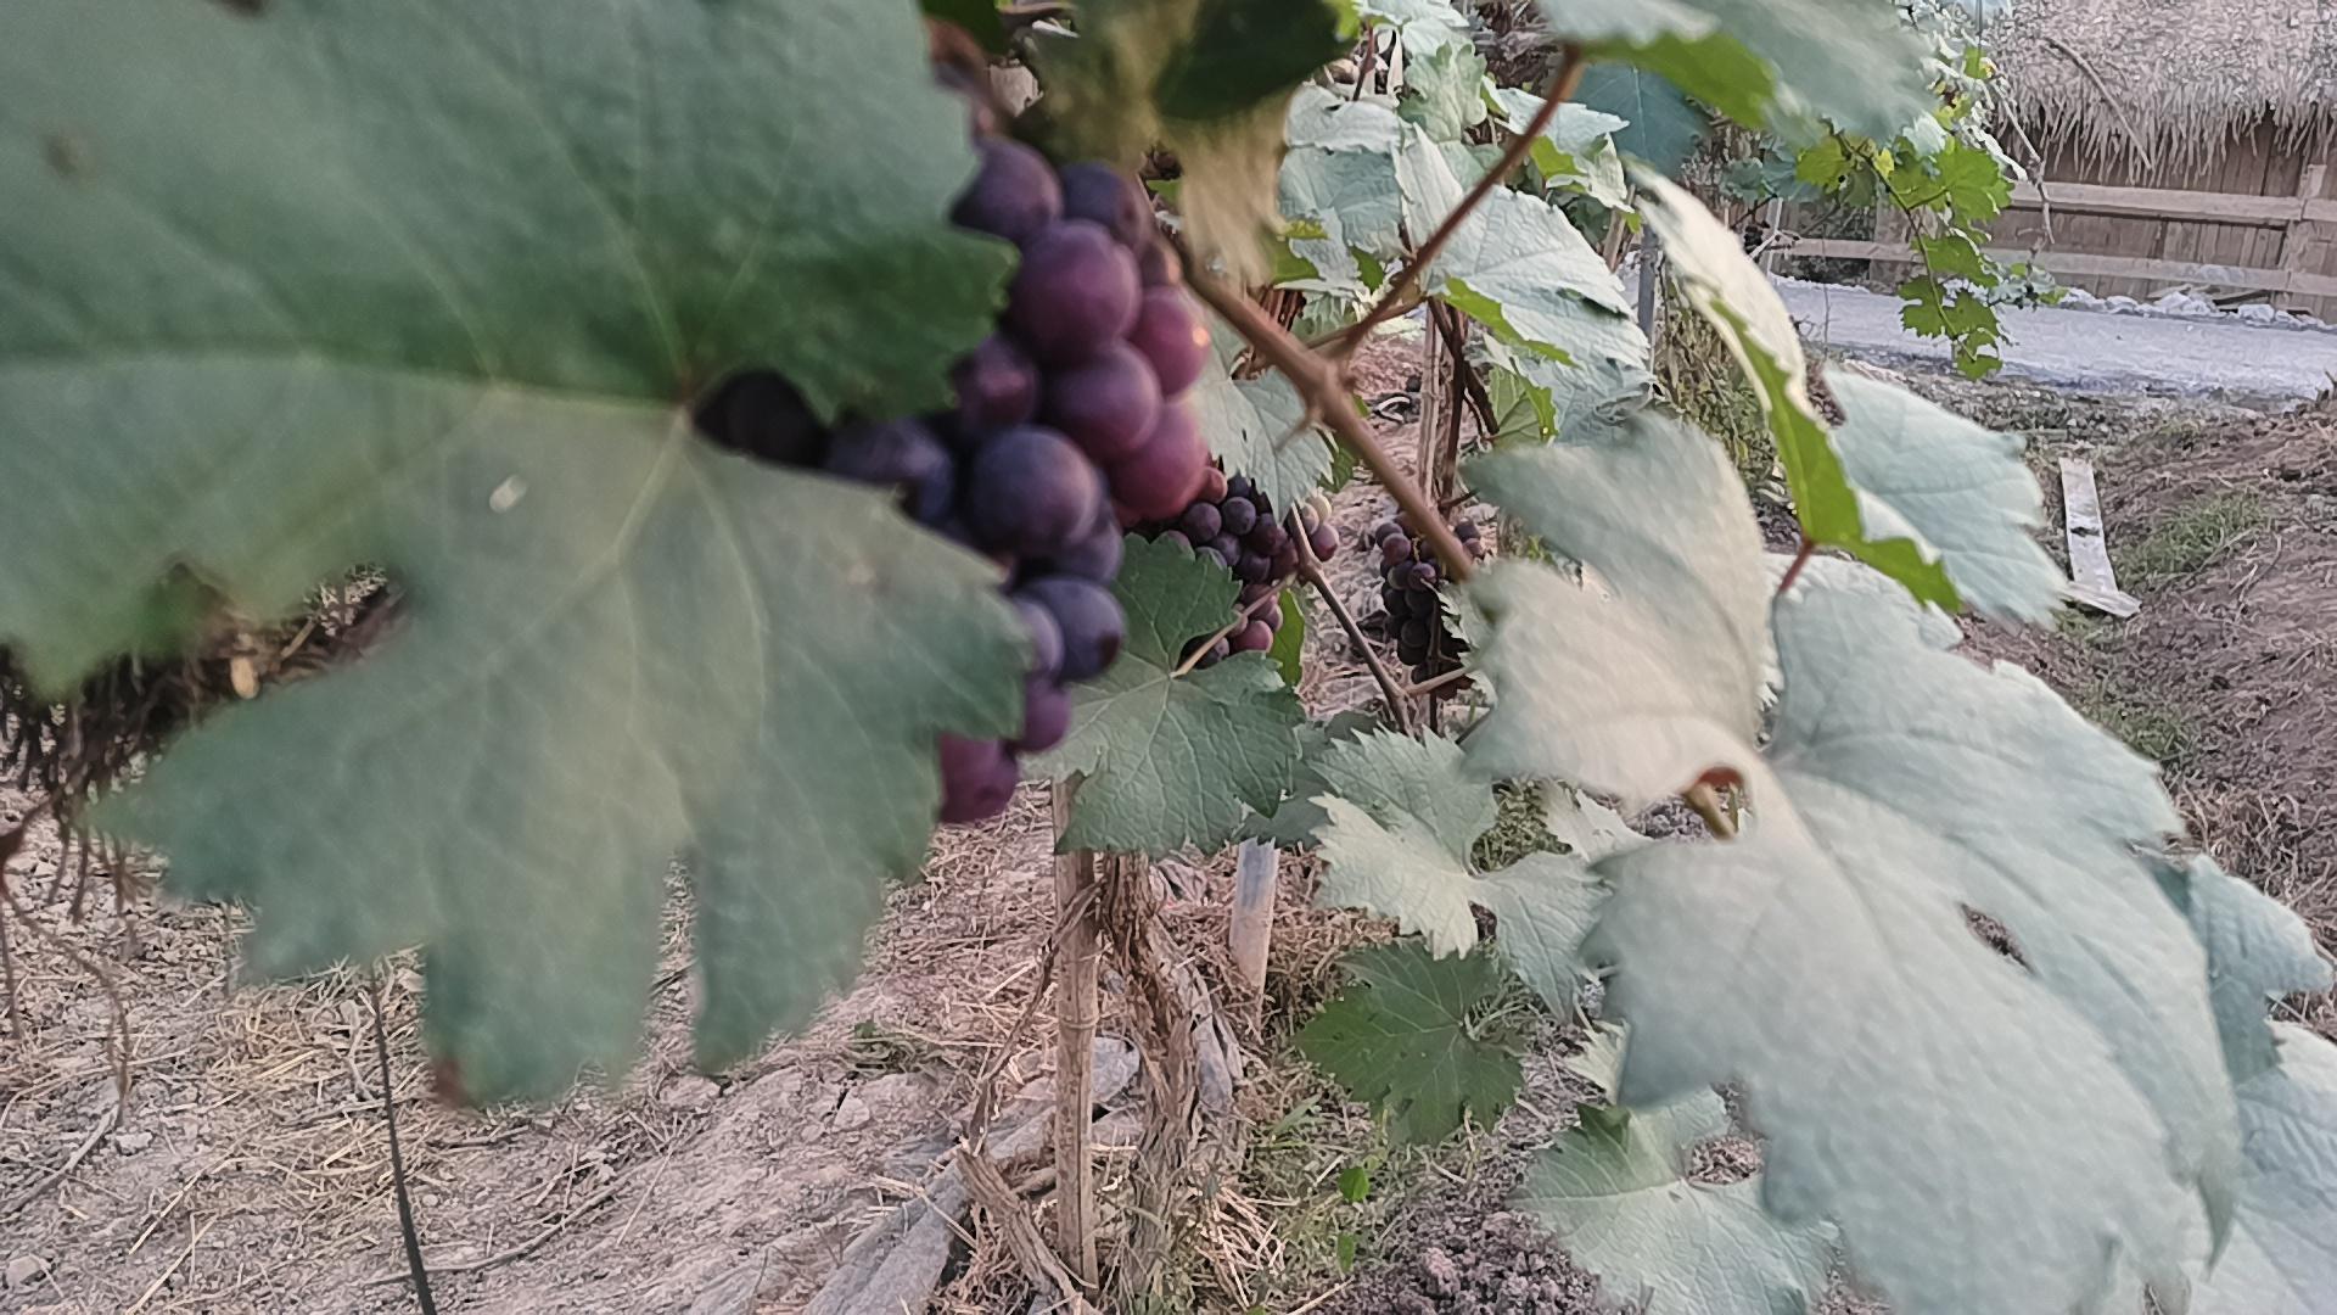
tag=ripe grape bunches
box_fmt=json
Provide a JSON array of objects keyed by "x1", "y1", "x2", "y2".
[
  {"x1": 1128, "y1": 469, "x2": 1340, "y2": 666},
  {"x1": 1363, "y1": 513, "x2": 1468, "y2": 700},
  {"x1": 696, "y1": 125, "x2": 1212, "y2": 823}
]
